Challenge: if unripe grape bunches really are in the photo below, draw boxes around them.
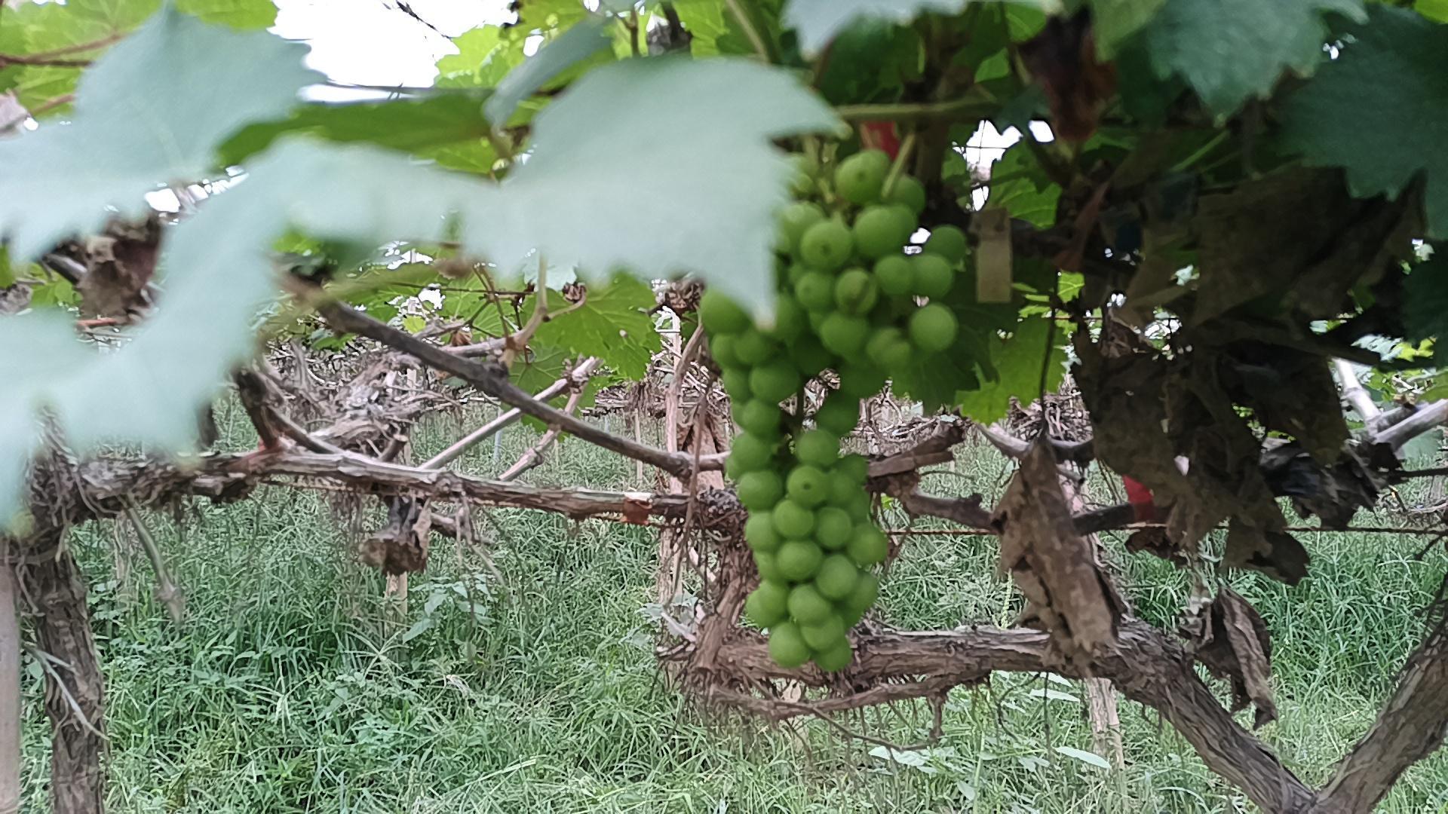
[699,152,890,672]
[799,145,968,370]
